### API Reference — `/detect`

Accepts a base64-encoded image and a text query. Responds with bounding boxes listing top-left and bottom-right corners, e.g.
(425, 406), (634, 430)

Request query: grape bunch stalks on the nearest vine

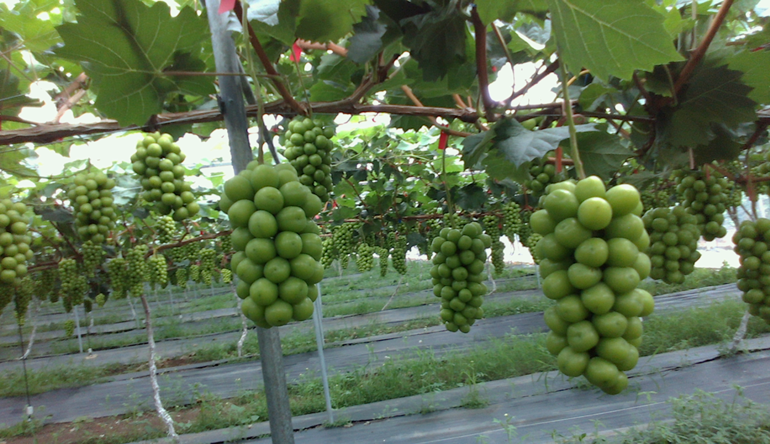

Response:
(559, 57), (586, 181)
(241, 1), (264, 165)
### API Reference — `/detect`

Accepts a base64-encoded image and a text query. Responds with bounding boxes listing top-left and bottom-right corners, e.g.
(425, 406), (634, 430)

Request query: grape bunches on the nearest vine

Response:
(531, 176), (654, 395)
(219, 160), (323, 329)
